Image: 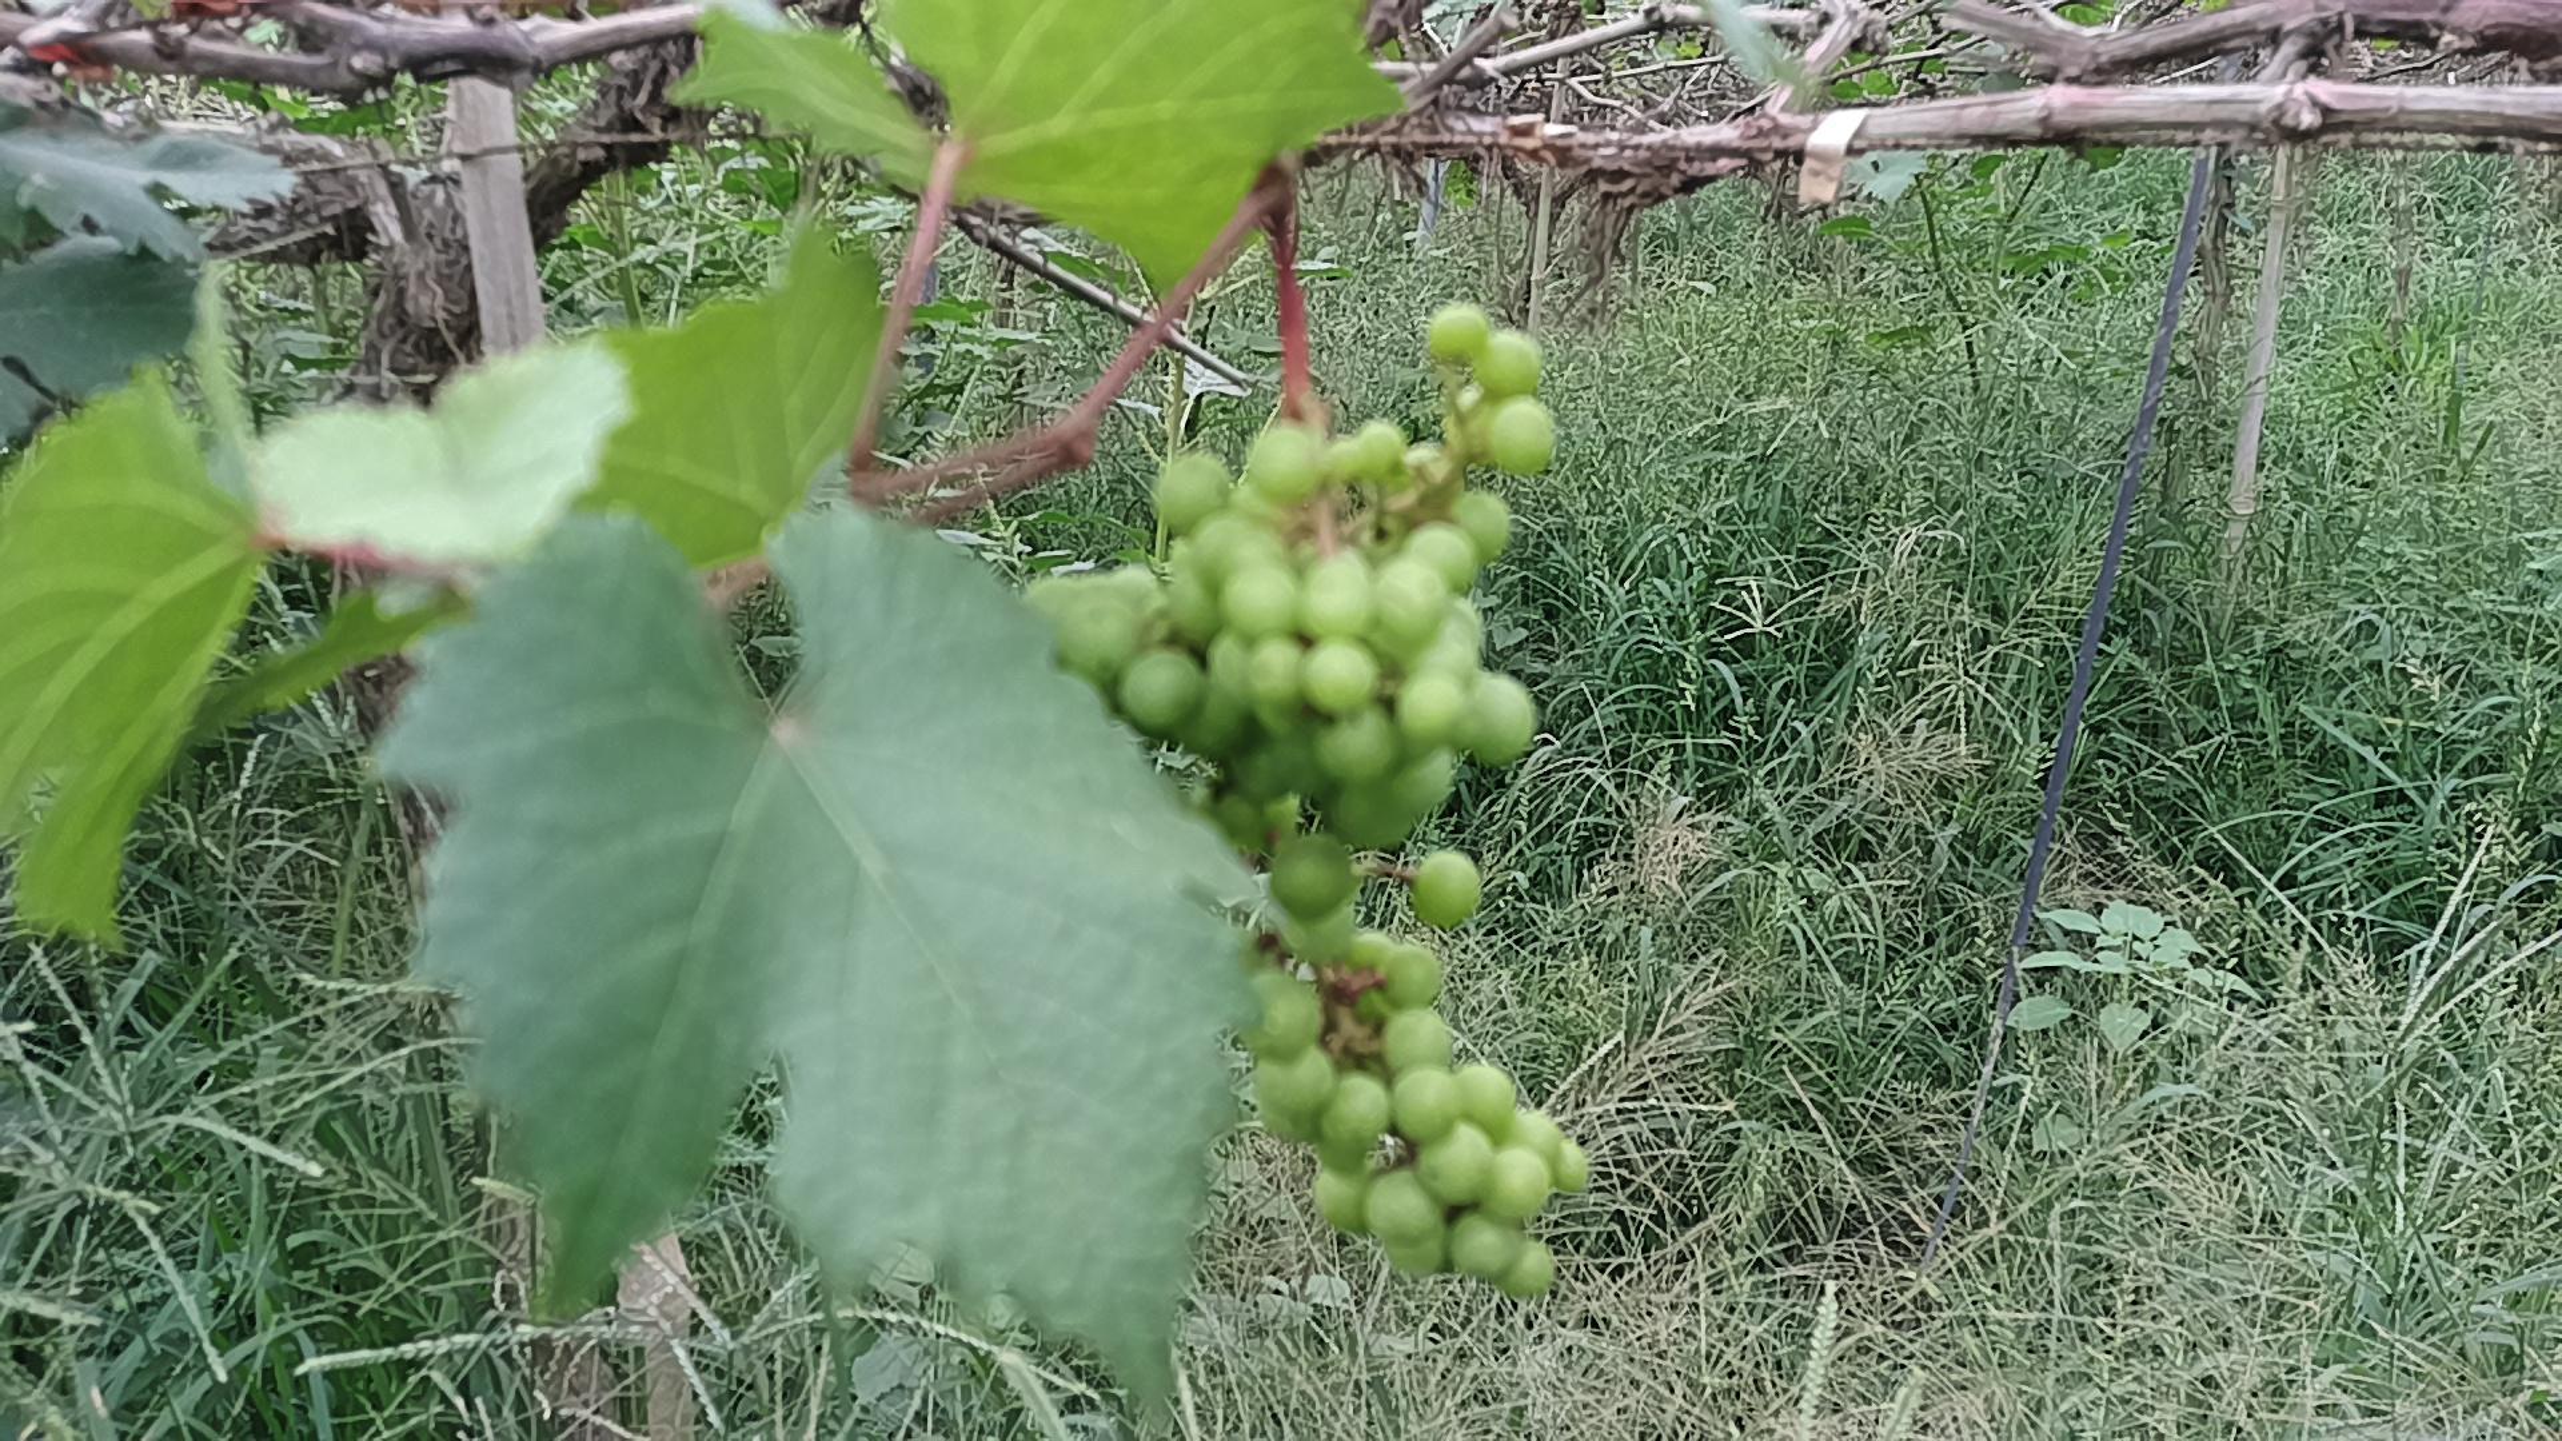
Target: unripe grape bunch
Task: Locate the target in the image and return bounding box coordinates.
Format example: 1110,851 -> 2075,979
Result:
1026,307 -> 1588,1296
